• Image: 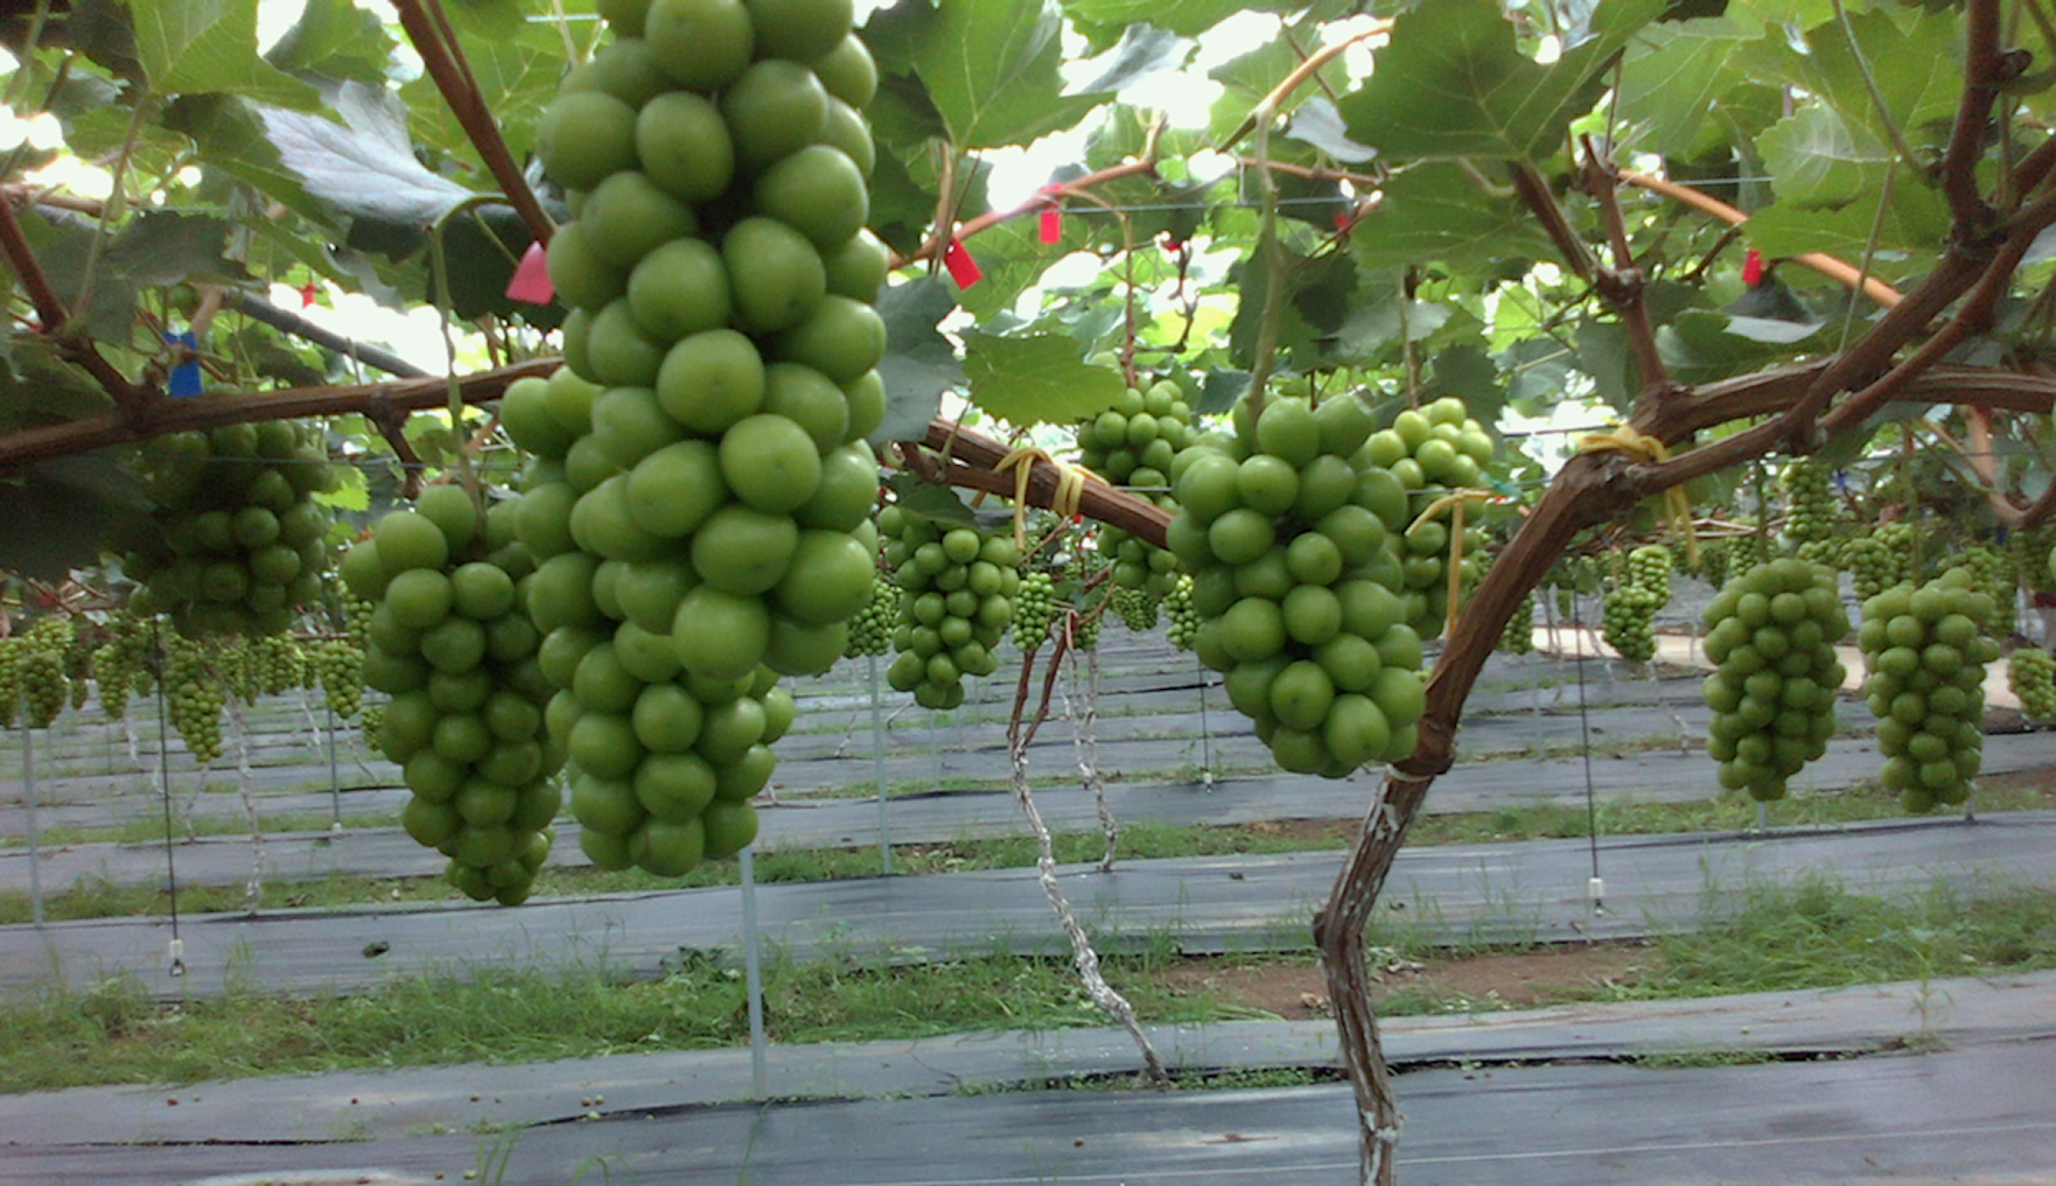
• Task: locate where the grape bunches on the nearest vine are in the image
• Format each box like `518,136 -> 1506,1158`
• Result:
1161,389 -> 1427,777
502,366 -> 792,881
535,0 -> 890,682
344,483 -> 563,868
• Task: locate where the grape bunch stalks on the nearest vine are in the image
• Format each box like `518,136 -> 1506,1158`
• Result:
423,191 -> 504,560
1216,25 -> 1394,427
